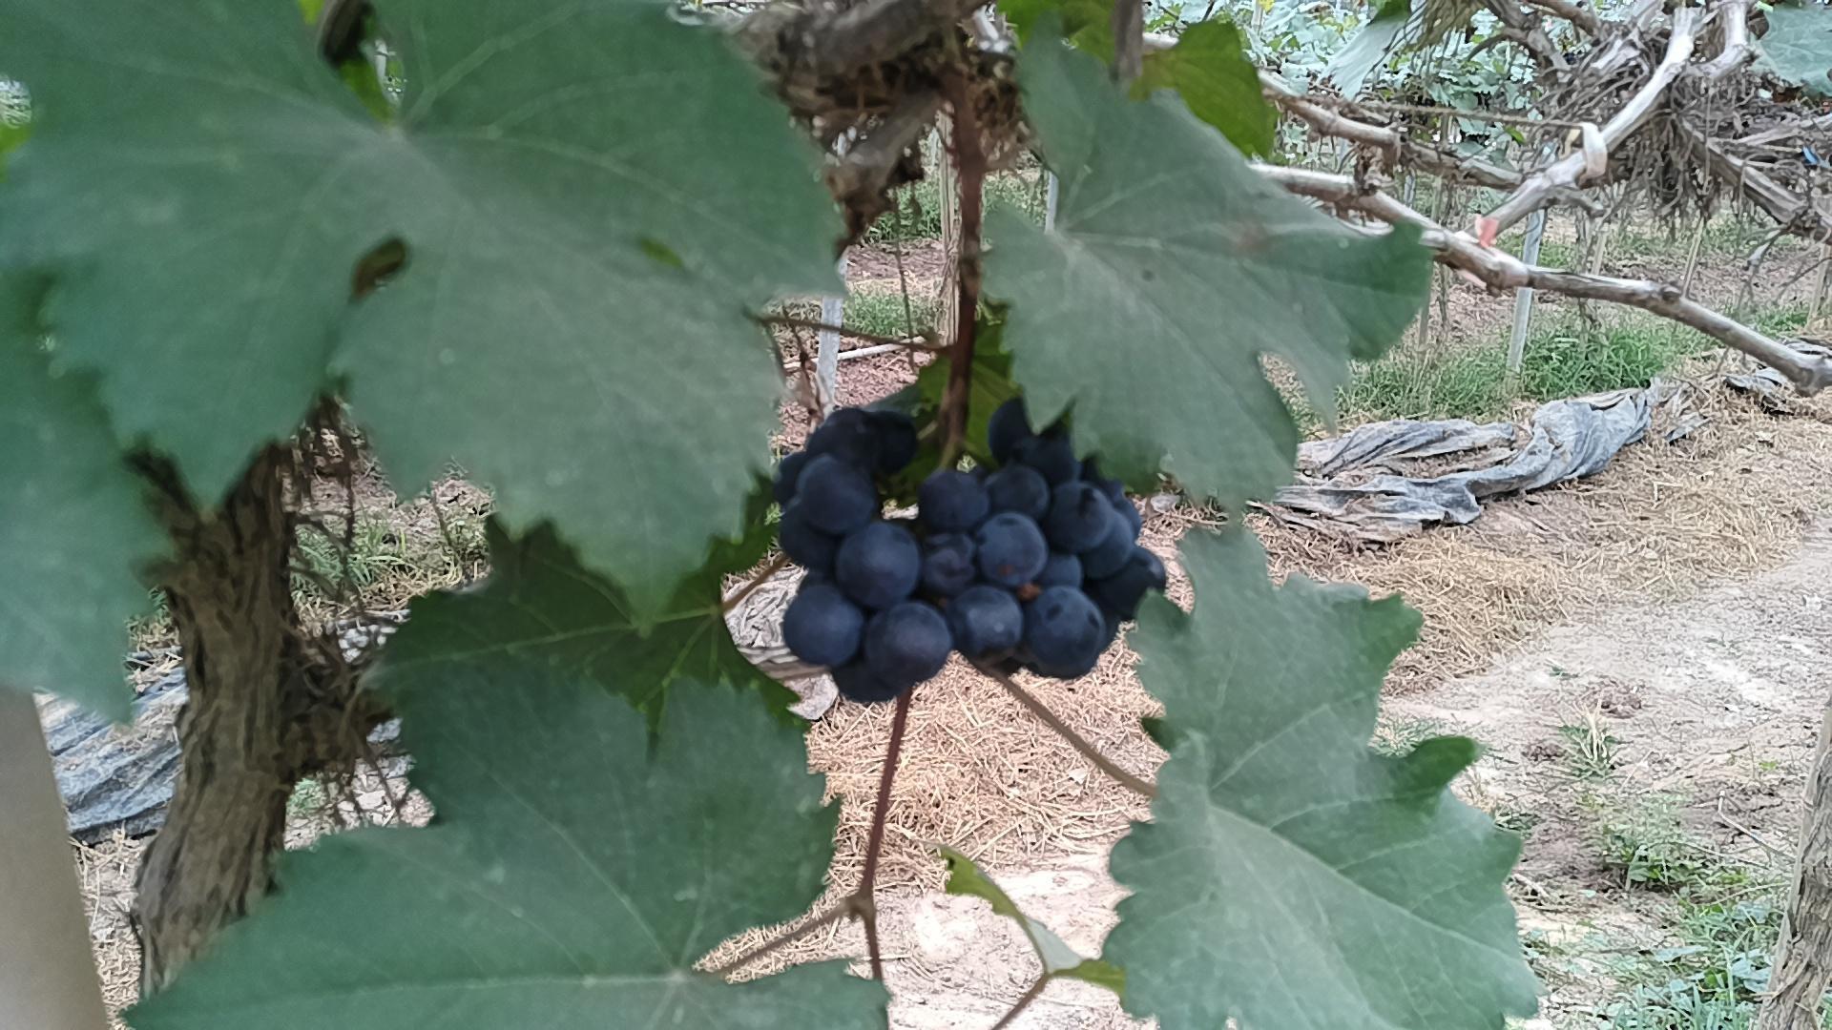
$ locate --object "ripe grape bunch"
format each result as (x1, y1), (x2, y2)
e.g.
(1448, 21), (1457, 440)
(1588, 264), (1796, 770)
(775, 399), (1166, 701)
